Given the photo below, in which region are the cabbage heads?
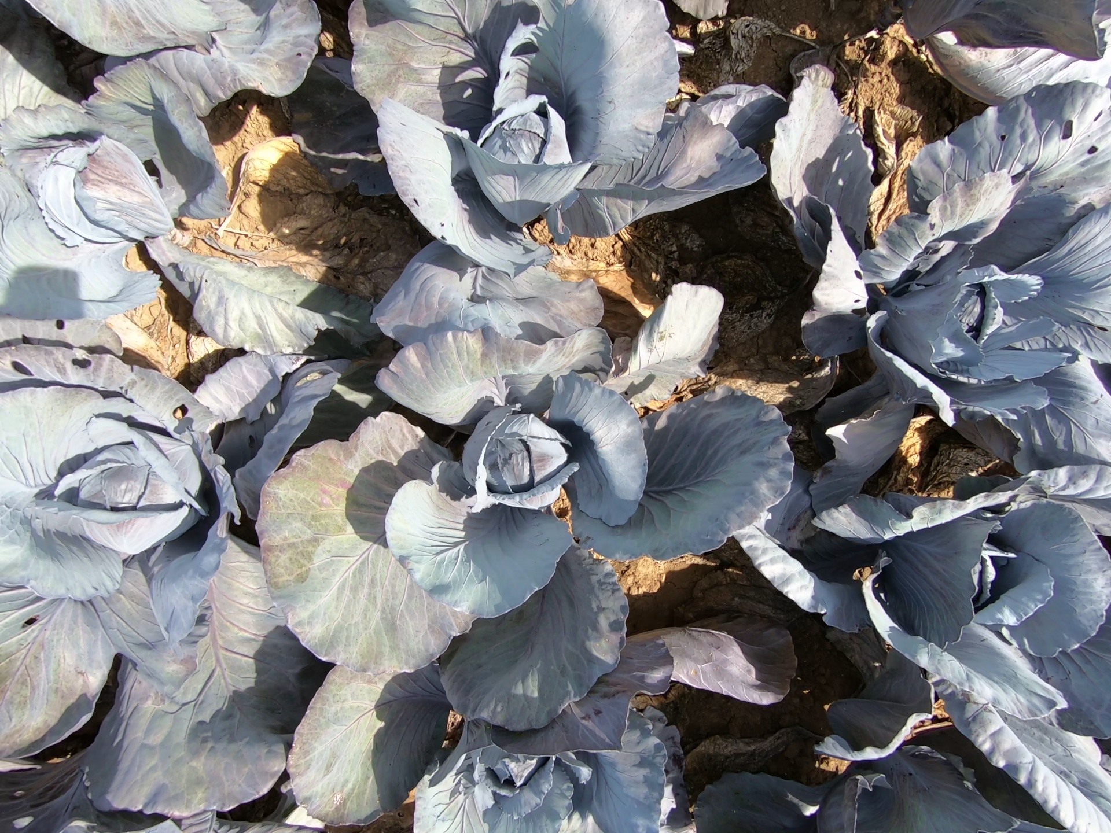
[31,146,150,246]
[473,693,554,791]
[76,441,198,554]
[475,109,571,217]
[908,530,995,613]
[927,278,1002,349]
[473,413,568,508]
